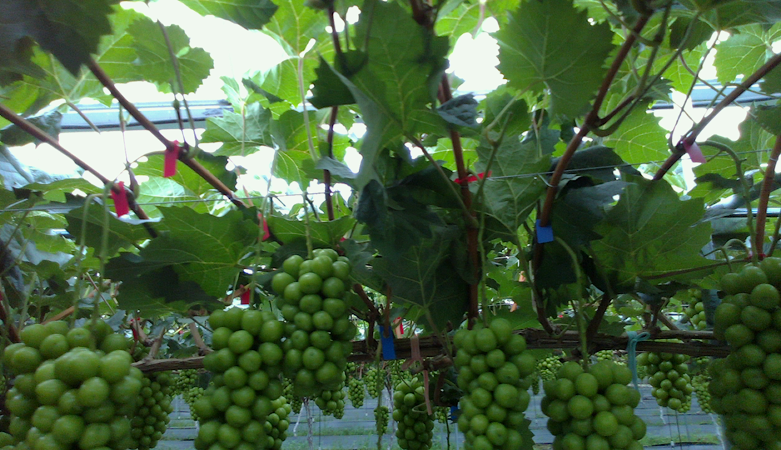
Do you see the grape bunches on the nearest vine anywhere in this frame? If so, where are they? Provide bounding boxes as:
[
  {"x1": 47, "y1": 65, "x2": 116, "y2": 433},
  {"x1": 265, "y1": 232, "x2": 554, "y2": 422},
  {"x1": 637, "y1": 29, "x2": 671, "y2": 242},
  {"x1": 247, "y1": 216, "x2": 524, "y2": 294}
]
[
  {"x1": 456, "y1": 317, "x2": 536, "y2": 449},
  {"x1": 0, "y1": 320, "x2": 89, "y2": 449},
  {"x1": 272, "y1": 249, "x2": 357, "y2": 396},
  {"x1": 541, "y1": 359, "x2": 645, "y2": 449},
  {"x1": 194, "y1": 306, "x2": 285, "y2": 449},
  {"x1": 710, "y1": 258, "x2": 780, "y2": 449},
  {"x1": 28, "y1": 329, "x2": 143, "y2": 449}
]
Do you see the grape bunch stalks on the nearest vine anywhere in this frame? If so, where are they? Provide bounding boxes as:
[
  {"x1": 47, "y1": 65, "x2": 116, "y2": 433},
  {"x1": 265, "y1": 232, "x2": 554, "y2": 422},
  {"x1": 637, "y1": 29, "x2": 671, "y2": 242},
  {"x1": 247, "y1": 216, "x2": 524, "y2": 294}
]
[
  {"x1": 88, "y1": 204, "x2": 109, "y2": 349},
  {"x1": 70, "y1": 193, "x2": 102, "y2": 327},
  {"x1": 556, "y1": 238, "x2": 588, "y2": 372},
  {"x1": 303, "y1": 191, "x2": 320, "y2": 259},
  {"x1": 697, "y1": 139, "x2": 758, "y2": 264},
  {"x1": 250, "y1": 193, "x2": 287, "y2": 308},
  {"x1": 477, "y1": 196, "x2": 488, "y2": 327}
]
